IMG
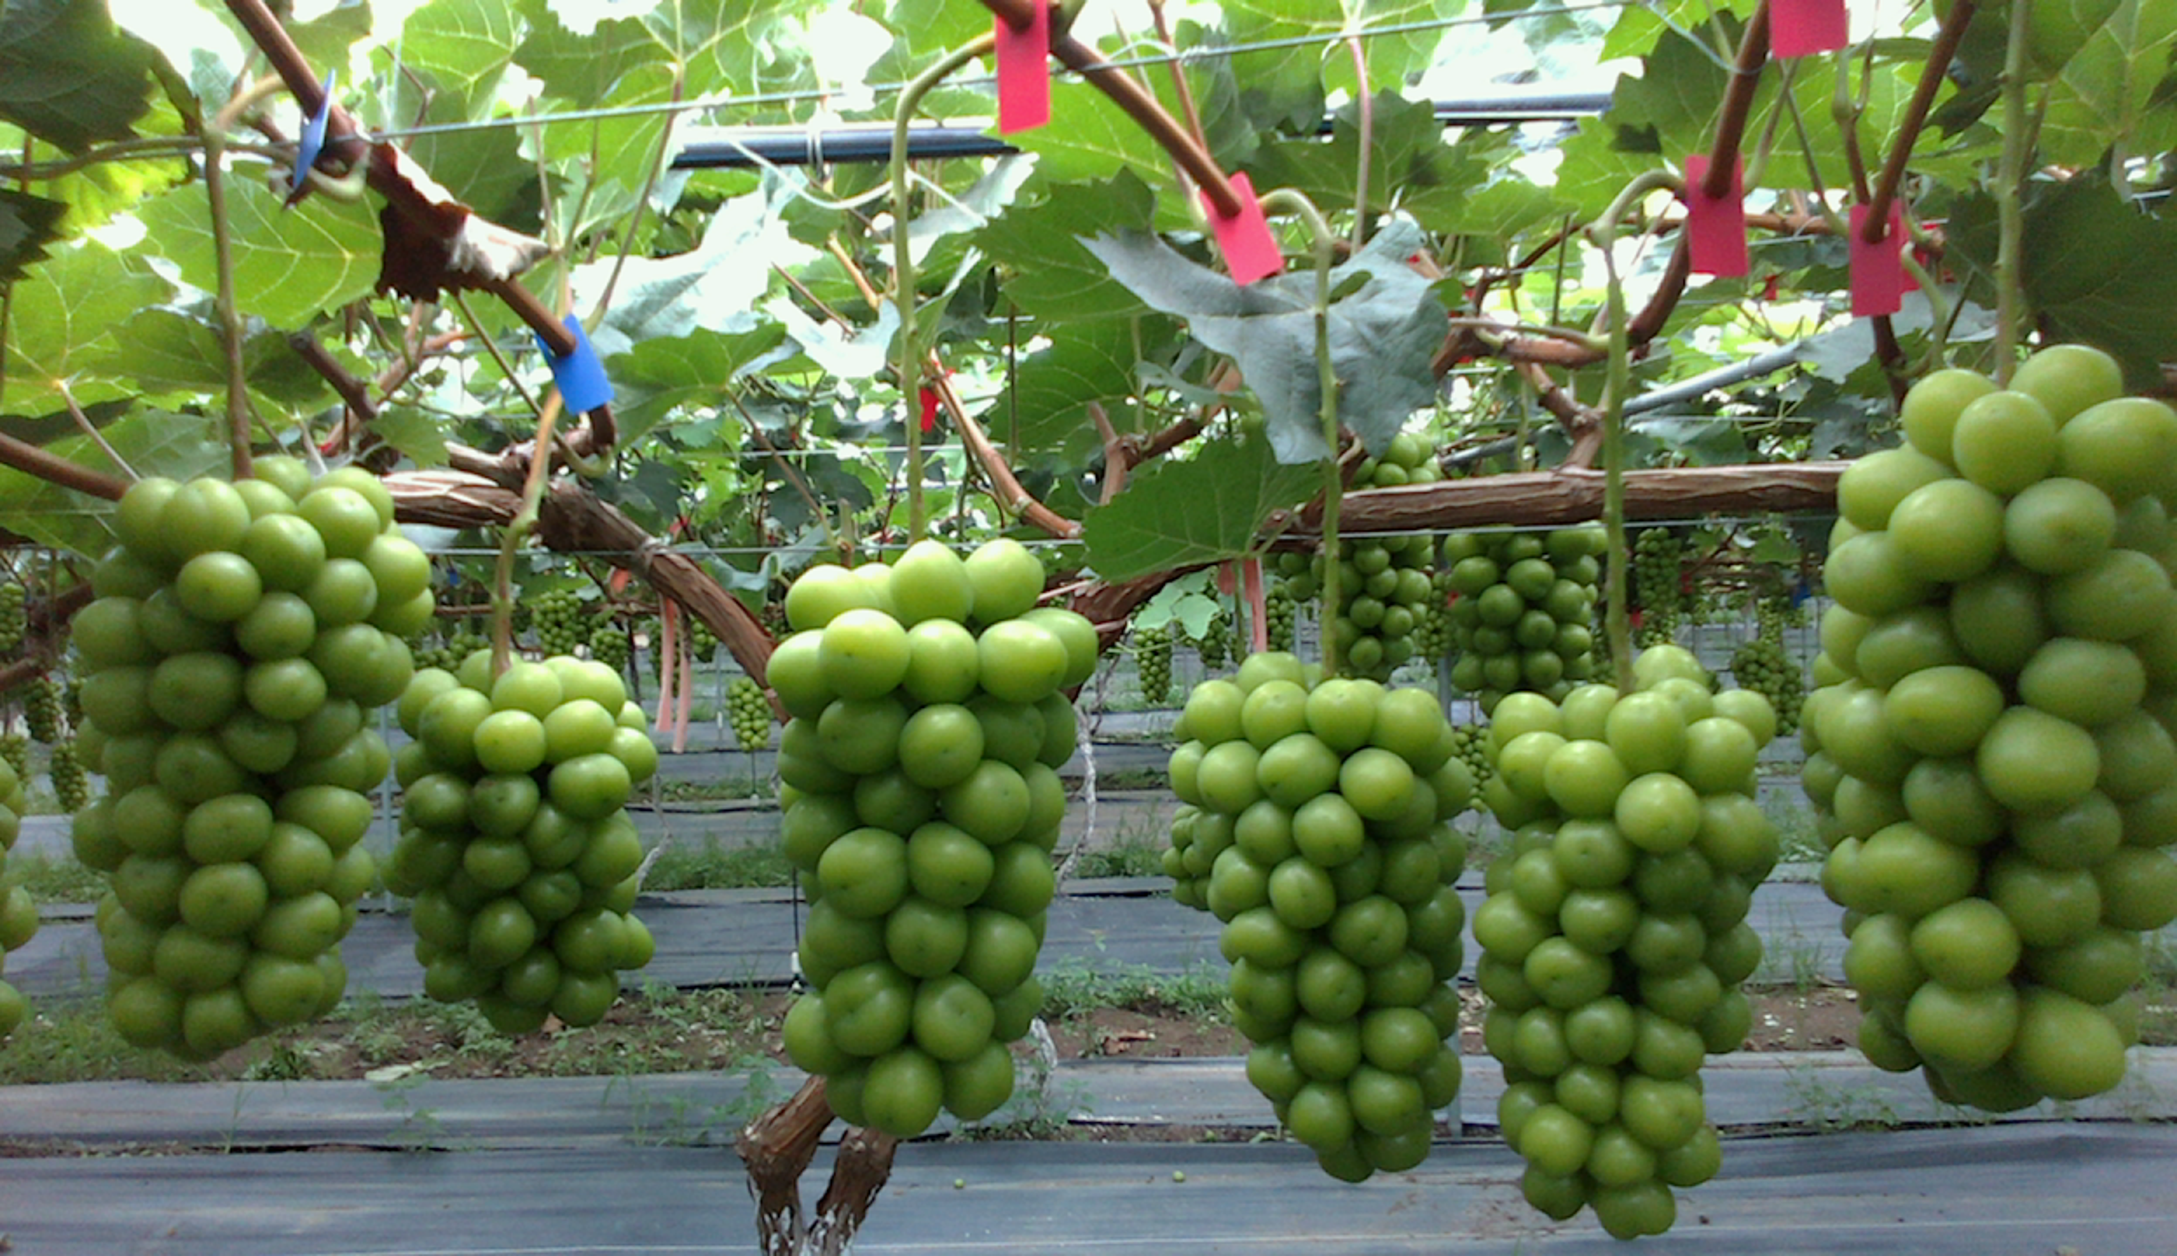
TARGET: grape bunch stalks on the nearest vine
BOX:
[208,77,290,480]
[488,391,565,684]
[1996,0,2032,391]
[890,30,996,549]
[1256,190,1341,682]
[1586,173,1687,700]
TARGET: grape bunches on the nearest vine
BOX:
[70,455,433,1066]
[766,536,1097,1137]
[1798,345,2174,1113]
[1167,652,1472,1186]
[380,647,658,1038]
[1471,644,1781,1240]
